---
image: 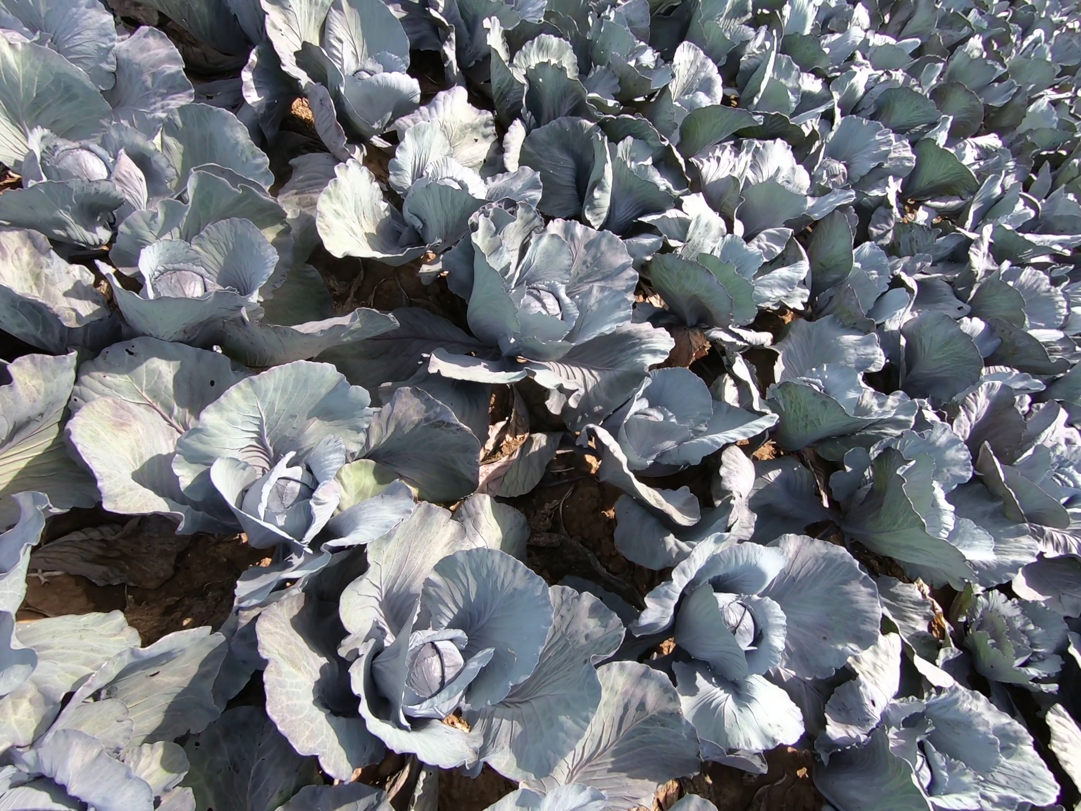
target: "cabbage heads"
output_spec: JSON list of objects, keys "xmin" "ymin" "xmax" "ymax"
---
[
  {"xmin": 45, "ymin": 146, "xmax": 114, "ymax": 197},
  {"xmin": 145, "ymin": 264, "xmax": 214, "ymax": 323},
  {"xmin": 385, "ymin": 632, "xmax": 470, "ymax": 712},
  {"xmin": 511, "ymin": 287, "xmax": 561, "ymax": 339},
  {"xmin": 699, "ymin": 596, "xmax": 758, "ymax": 652},
  {"xmin": 244, "ymin": 467, "xmax": 319, "ymax": 538},
  {"xmin": 625, "ymin": 411, "xmax": 663, "ymax": 458},
  {"xmin": 420, "ymin": 175, "xmax": 466, "ymax": 225},
  {"xmin": 864, "ymin": 733, "xmax": 935, "ymax": 795}
]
